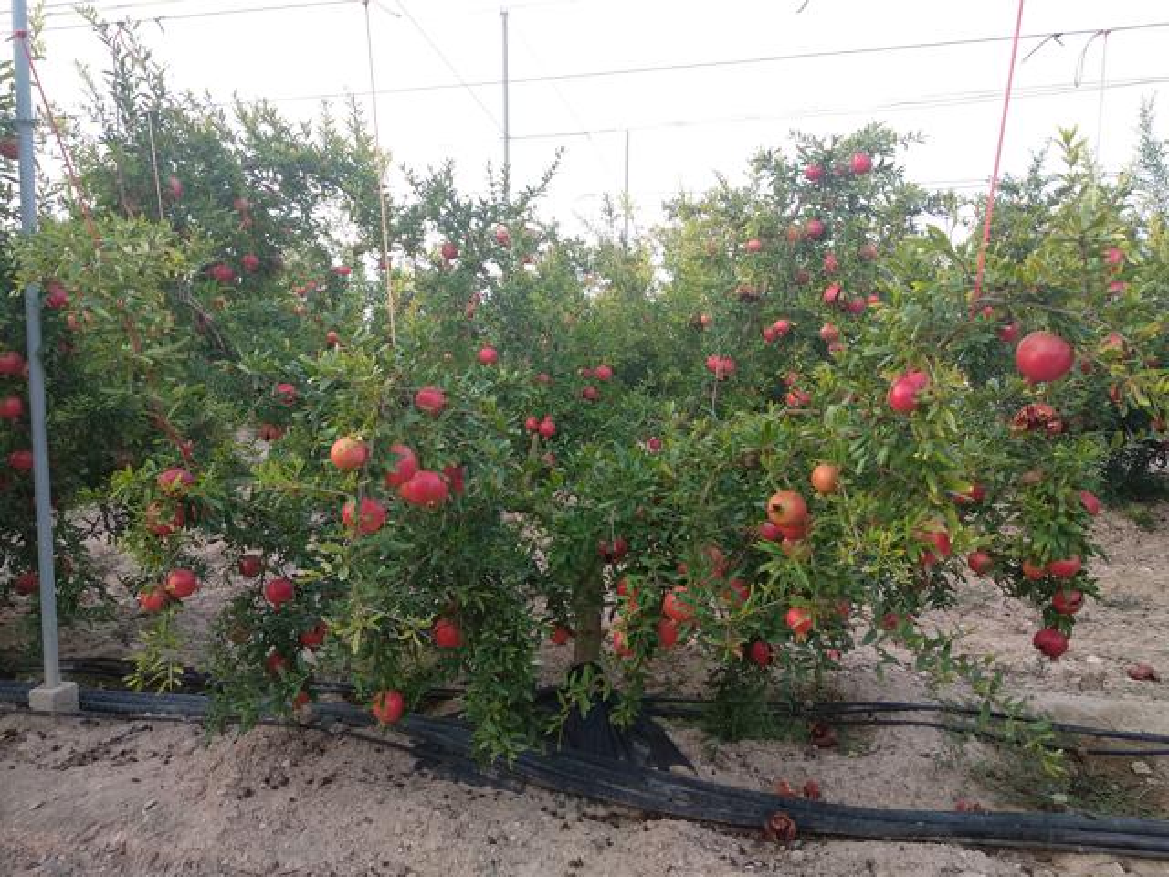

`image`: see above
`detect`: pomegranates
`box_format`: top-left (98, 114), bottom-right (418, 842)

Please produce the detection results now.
top-left (952, 486), bottom-right (985, 506)
top-left (157, 468), bottom-right (194, 486)
top-left (292, 691), bottom-right (309, 709)
top-left (848, 153), bottom-right (873, 174)
top-left (263, 577), bottom-right (298, 616)
top-left (329, 437), bottom-right (367, 470)
top-left (0, 139), bottom-right (20, 159)
top-left (1034, 627), bottom-right (1069, 660)
top-left (818, 323), bottom-right (838, 345)
top-left (400, 470), bottom-right (448, 510)
top-left (749, 639), bottom-right (774, 671)
top-left (968, 552), bottom-right (992, 577)
top-left (371, 692), bottom-right (404, 731)
top-left (342, 497), bottom-right (387, 534)
top-left (0, 351), bottom-right (29, 378)
top-left (477, 345), bottom-right (499, 365)
top-left (15, 572), bottom-right (38, 594)
top-left (773, 318), bottom-right (791, 336)
top-left (148, 501), bottom-right (184, 537)
top-left (822, 254), bottom-right (838, 274)
top-left (9, 448), bottom-right (35, 475)
top-left (705, 354), bottom-right (734, 382)
top-left (440, 243), bottom-right (460, 261)
top-left (764, 327), bottom-right (780, 343)
top-left (440, 466), bottom-right (466, 493)
top-left (822, 285), bottom-right (840, 305)
top-left (802, 161), bottom-right (826, 179)
top-left (203, 263), bottom-right (236, 280)
top-left (594, 364), bottom-right (614, 382)
top-left (552, 625), bottom-right (570, 647)
top-left (597, 539), bottom-right (632, 566)
top-left (785, 389), bottom-right (811, 407)
top-left (745, 239), bottom-right (764, 254)
top-left (612, 630), bottom-right (634, 656)
top-left (846, 298), bottom-right (866, 314)
top-left (66, 311), bottom-right (93, 331)
top-left (46, 283), bottom-right (69, 309)
top-left (778, 523), bottom-right (807, 543)
top-left (0, 393), bottom-right (24, 426)
top-left (663, 586), bottom-right (696, 634)
top-left (1014, 331), bottom-right (1074, 384)
top-left (385, 444), bottom-right (420, 484)
top-left (654, 618), bottom-right (676, 647)
top-left (922, 532), bottom-right (952, 563)
top-left (1021, 559), bottom-right (1047, 581)
top-left (888, 369), bottom-right (928, 413)
top-left (415, 387), bottom-right (446, 411)
top-left (858, 243), bottom-right (879, 261)
top-left (431, 618), bottom-right (460, 649)
top-left (524, 417), bottom-right (541, 431)
top-left (276, 384), bottom-right (294, 406)
top-left (239, 554), bottom-right (263, 577)
top-left (259, 424), bottom-right (283, 440)
top-left (647, 435), bottom-right (663, 451)
top-left (616, 581), bottom-right (628, 597)
top-left (765, 490), bottom-right (807, 526)
top-left (166, 570), bottom-right (197, 599)
top-left (758, 521), bottom-right (782, 543)
top-left (1047, 555), bottom-right (1083, 579)
top-left (241, 254), bottom-right (259, 272)
top-left (804, 219), bottom-right (826, 241)
top-left (785, 608), bottom-right (811, 643)
top-left (811, 464), bottom-right (838, 493)
top-left (296, 627), bottom-right (325, 647)
top-left (581, 387), bottom-right (601, 402)
top-left (1079, 490), bottom-right (1100, 515)
top-left (539, 417), bottom-right (557, 437)
top-left (1052, 588), bottom-right (1083, 616)
top-left (139, 586), bottom-right (172, 612)
top-left (265, 649), bottom-right (287, 672)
